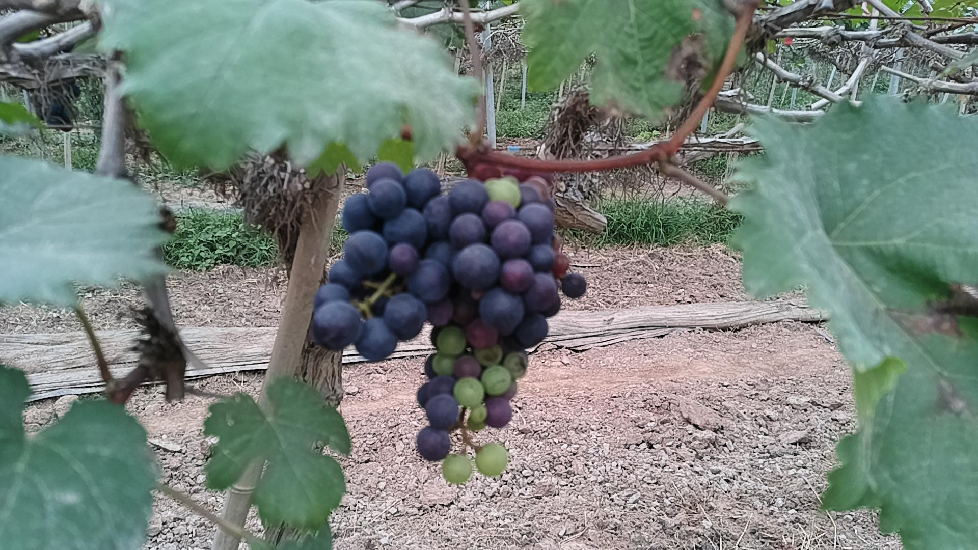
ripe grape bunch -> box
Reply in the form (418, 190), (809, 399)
(28, 78), (81, 131)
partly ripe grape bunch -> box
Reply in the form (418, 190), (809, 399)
(311, 163), (586, 483)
